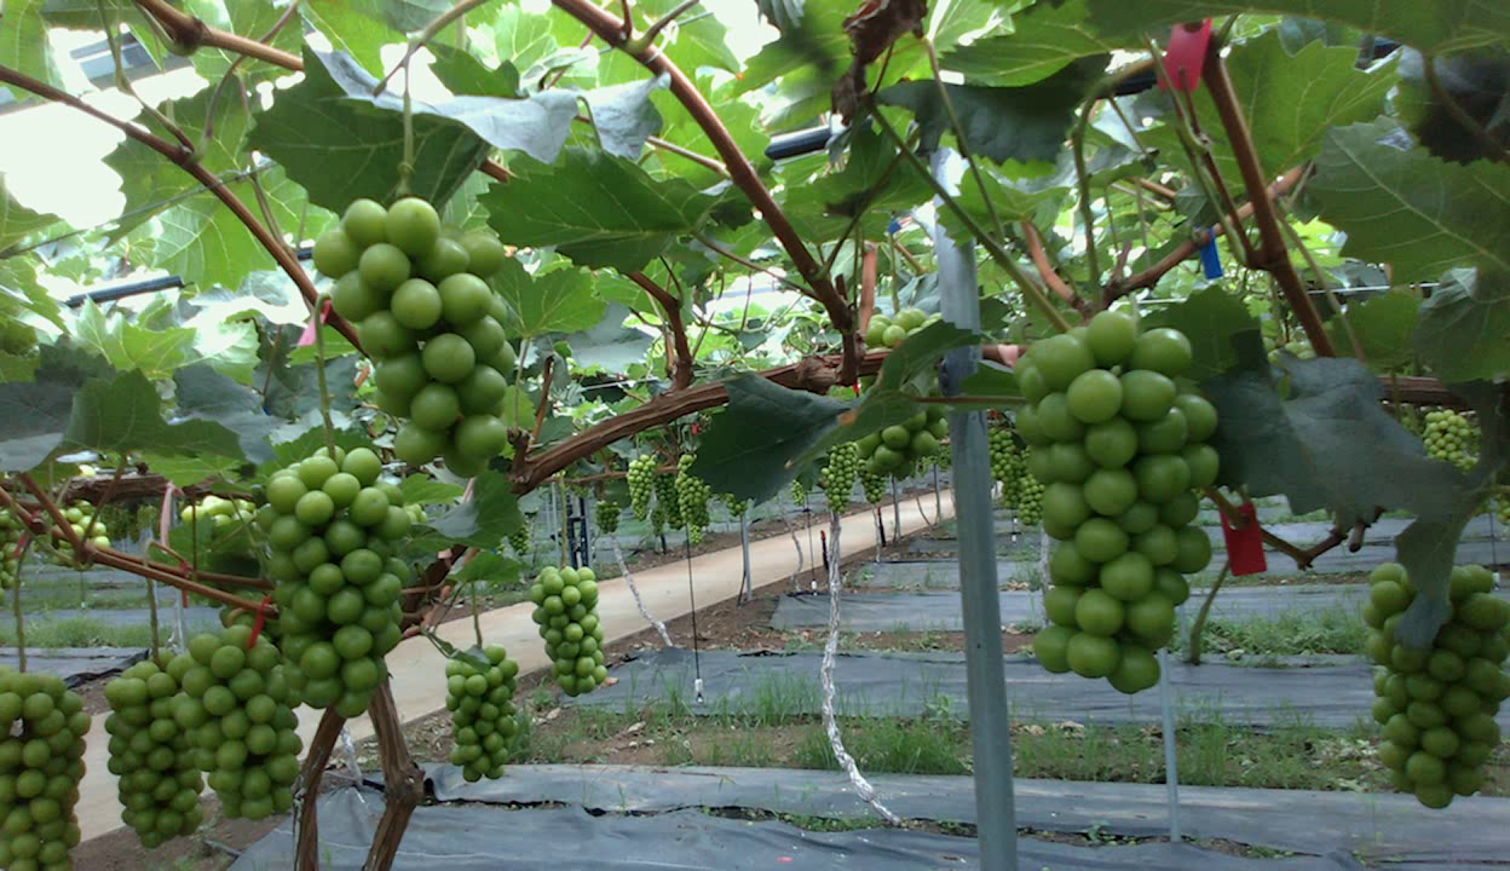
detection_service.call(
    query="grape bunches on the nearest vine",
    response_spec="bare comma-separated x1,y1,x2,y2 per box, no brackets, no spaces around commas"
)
258,446,411,717
312,196,517,478
0,664,92,870
169,624,302,820
104,647,206,848
1012,310,1218,694
1361,560,1508,811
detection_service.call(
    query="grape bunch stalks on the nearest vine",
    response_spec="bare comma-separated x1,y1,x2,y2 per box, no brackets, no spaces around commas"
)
313,293,338,462
12,536,31,674
394,34,421,203
143,538,186,671
1073,56,1158,316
